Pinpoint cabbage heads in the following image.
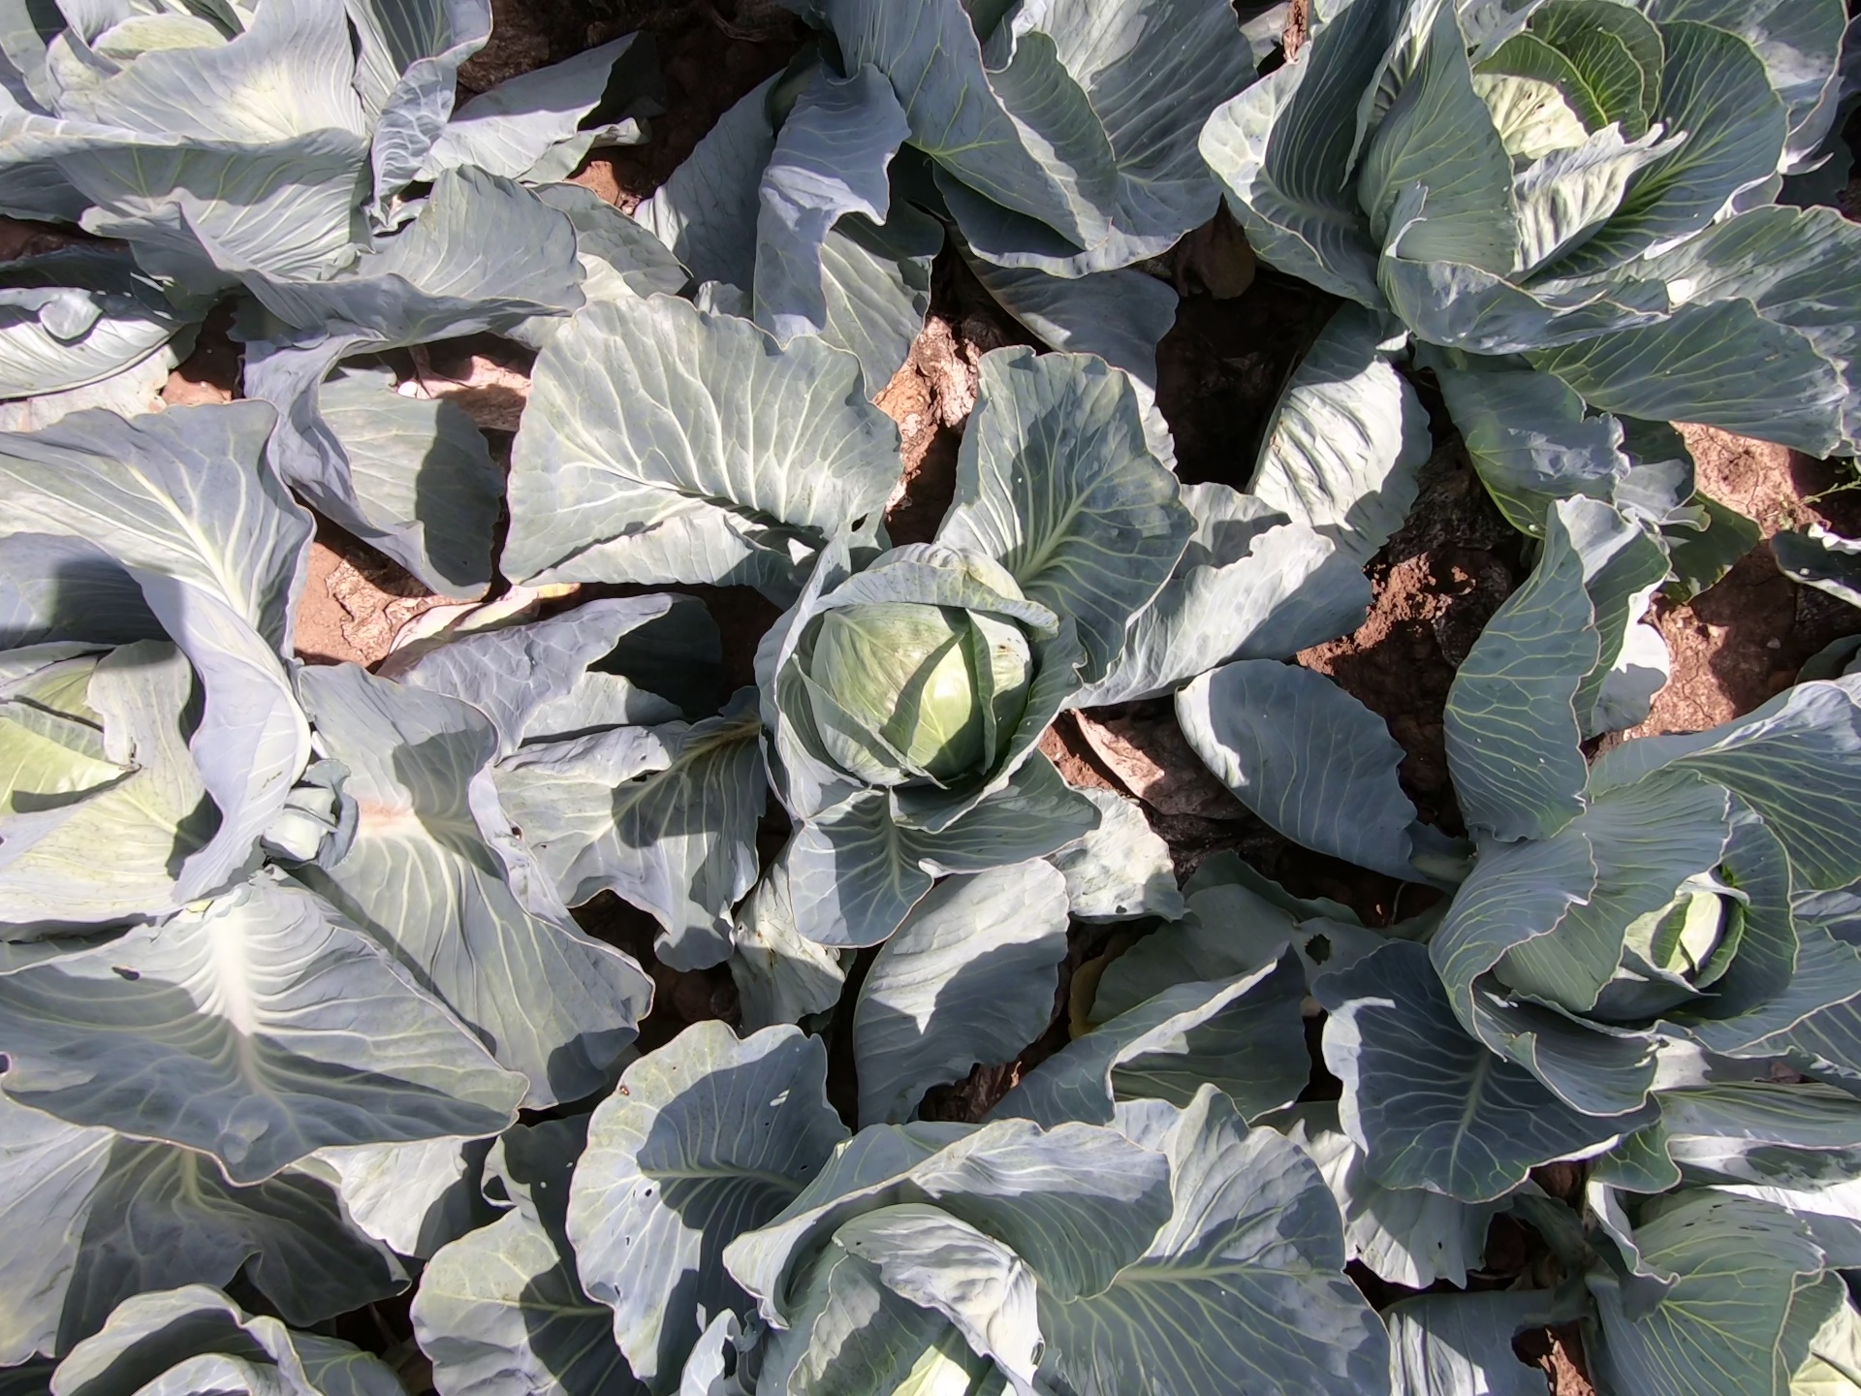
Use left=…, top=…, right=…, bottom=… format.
left=807, top=550, right=1037, bottom=785
left=0, top=640, right=275, bottom=948
left=768, top=1203, right=1041, bottom=1391
left=1370, top=52, right=1624, bottom=280
left=1501, top=815, right=1726, bottom=1011
left=1613, top=1220, right=1859, bottom=1393
left=58, top=11, right=363, bottom=225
